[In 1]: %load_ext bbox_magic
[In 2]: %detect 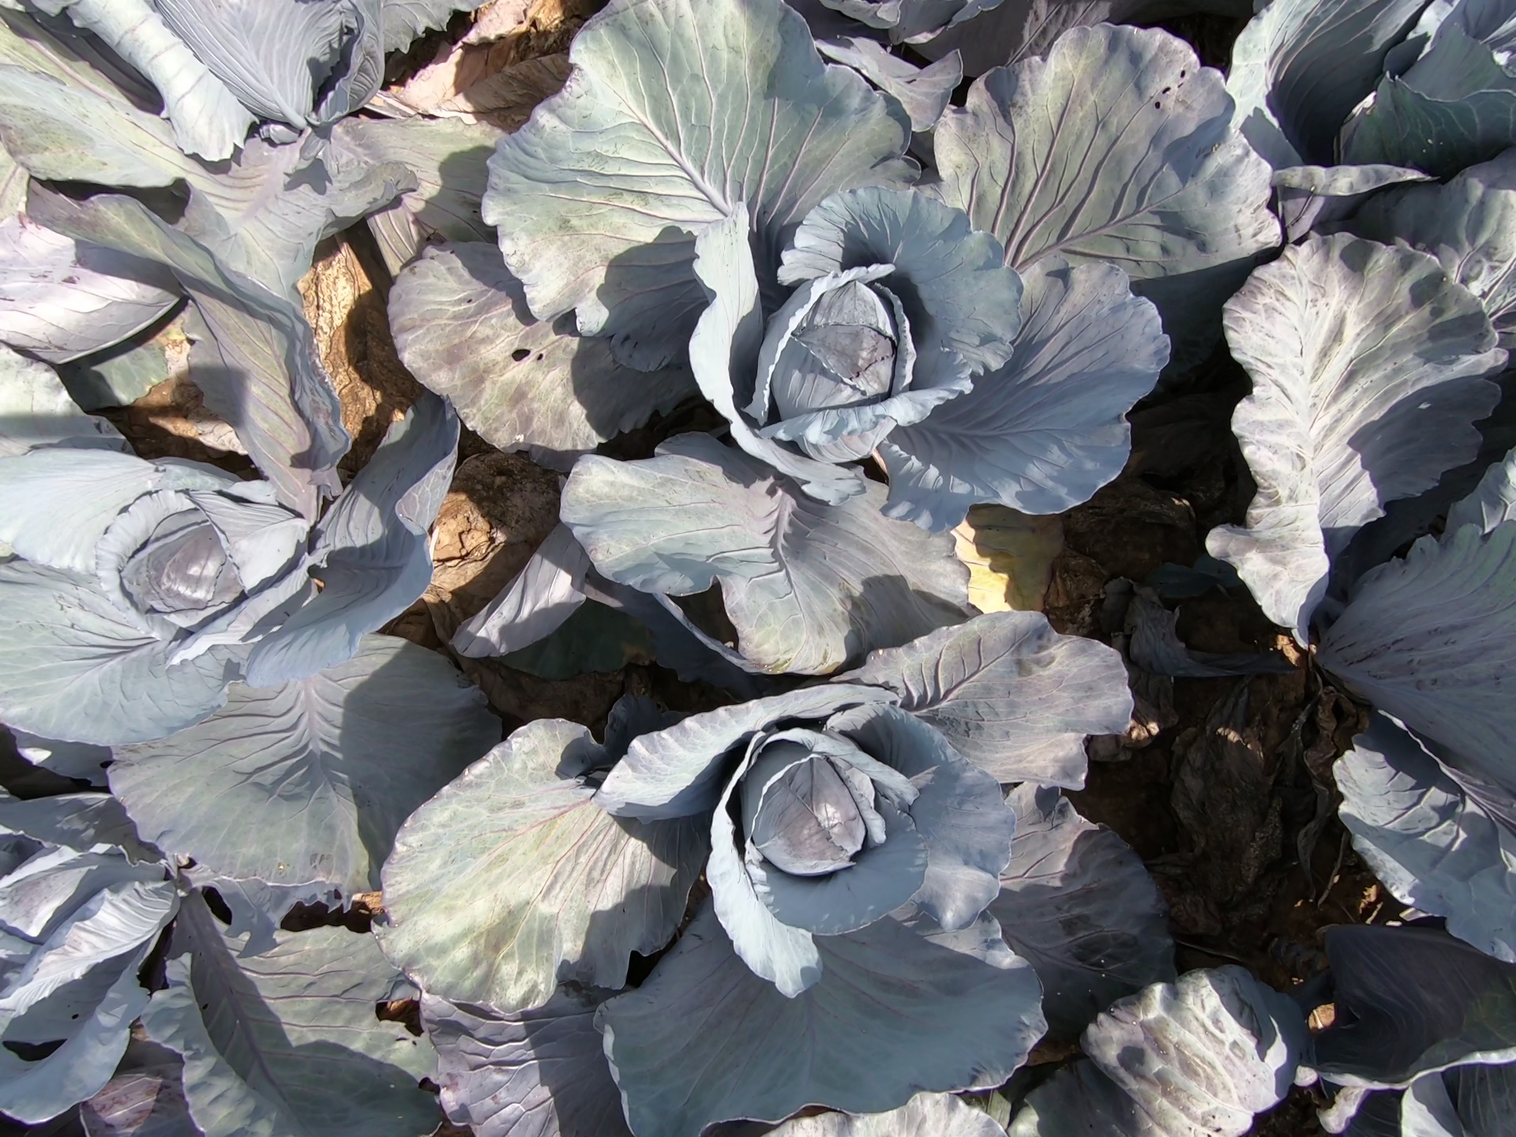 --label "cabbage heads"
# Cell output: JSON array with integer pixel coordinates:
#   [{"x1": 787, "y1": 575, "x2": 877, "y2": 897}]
[
  {"x1": 764, "y1": 279, "x2": 911, "y2": 446},
  {"x1": 745, "y1": 744, "x2": 875, "y2": 878},
  {"x1": 129, "y1": 505, "x2": 302, "y2": 638}
]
